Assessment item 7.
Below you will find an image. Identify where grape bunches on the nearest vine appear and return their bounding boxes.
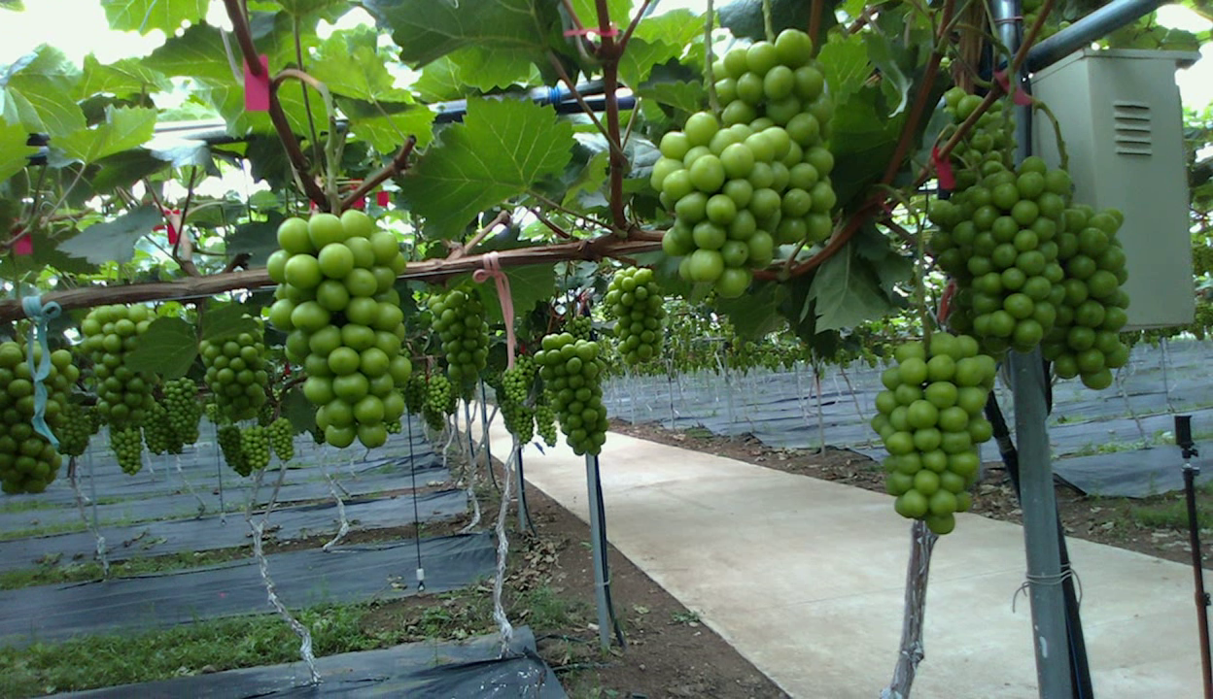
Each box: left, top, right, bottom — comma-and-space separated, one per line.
723, 28, 837, 245
265, 209, 412, 449
1041, 202, 1132, 391
872, 333, 996, 535
926, 155, 1071, 354
650, 78, 790, 299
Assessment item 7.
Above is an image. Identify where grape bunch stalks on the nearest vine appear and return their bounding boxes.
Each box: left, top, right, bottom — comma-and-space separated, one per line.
953, 24, 1016, 173
869, 183, 931, 362
273, 68, 340, 216
762, 0, 775, 45
704, 1, 719, 123
1024, 94, 1069, 172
